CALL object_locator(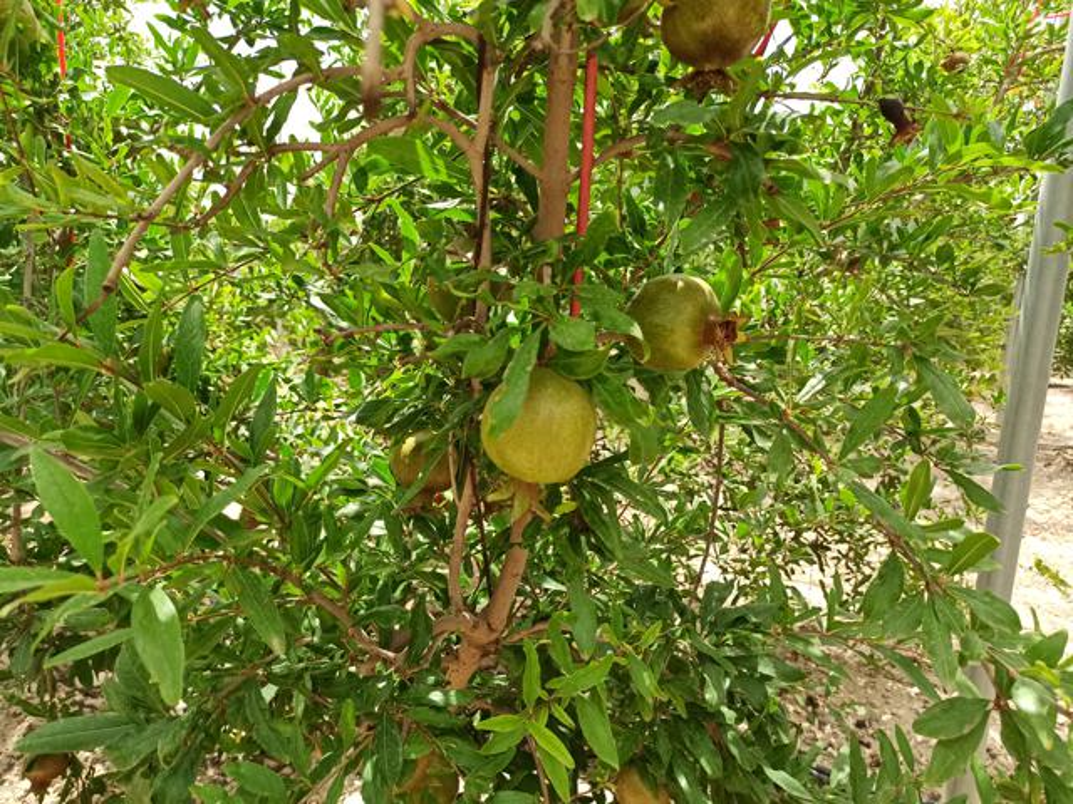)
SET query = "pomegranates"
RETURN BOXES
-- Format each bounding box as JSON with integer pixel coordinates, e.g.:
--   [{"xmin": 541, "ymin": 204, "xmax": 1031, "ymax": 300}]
[
  {"xmin": 661, "ymin": 0, "xmax": 771, "ymax": 106},
  {"xmin": 23, "ymin": 755, "xmax": 69, "ymax": 797},
  {"xmin": 612, "ymin": 765, "xmax": 669, "ymax": 804},
  {"xmin": 624, "ymin": 273, "xmax": 753, "ymax": 370},
  {"xmin": 389, "ymin": 427, "xmax": 449, "ymax": 518},
  {"xmin": 479, "ymin": 368, "xmax": 597, "ymax": 528}
]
